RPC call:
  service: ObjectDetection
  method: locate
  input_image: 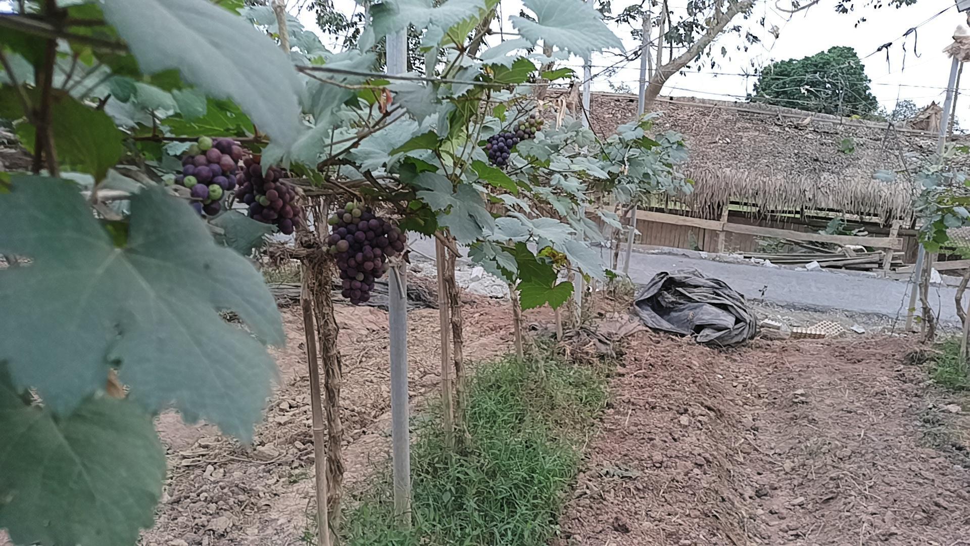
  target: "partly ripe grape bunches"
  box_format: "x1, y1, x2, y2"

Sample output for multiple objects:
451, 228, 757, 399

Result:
483, 111, 544, 170
235, 155, 307, 235
326, 202, 406, 305
175, 137, 243, 218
